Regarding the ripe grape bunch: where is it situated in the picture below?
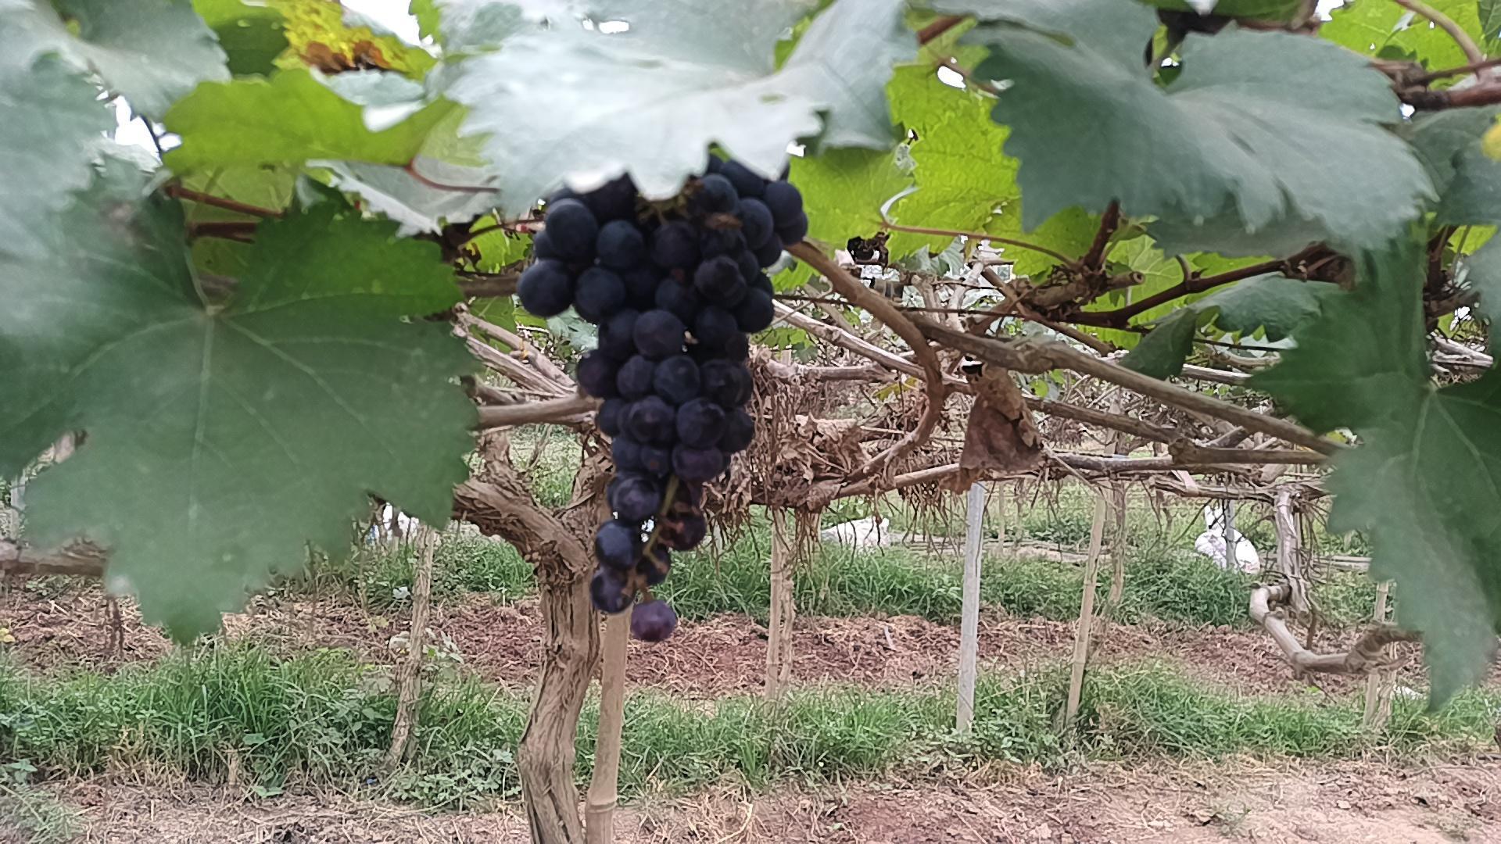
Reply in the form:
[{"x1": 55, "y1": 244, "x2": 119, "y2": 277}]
[{"x1": 518, "y1": 153, "x2": 807, "y2": 642}]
